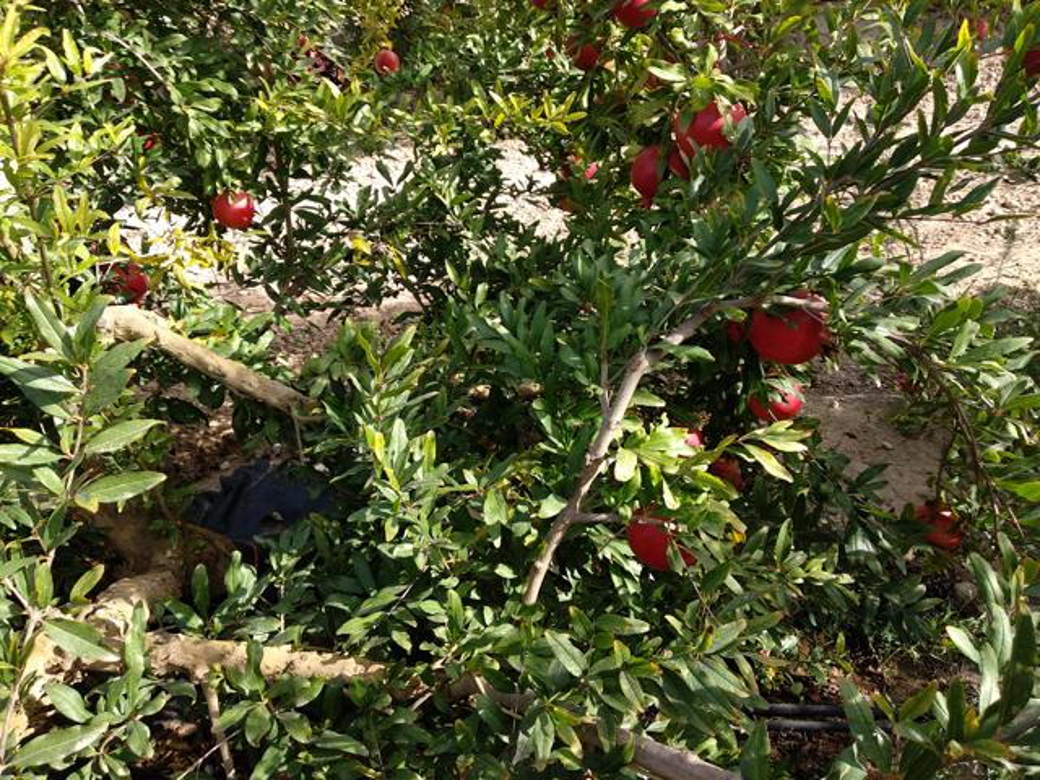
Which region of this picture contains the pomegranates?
[613,0,658,26]
[374,49,400,75]
[630,143,660,211]
[211,190,257,229]
[565,36,601,68]
[627,522,697,572]
[669,143,691,180]
[916,505,962,549]
[676,102,746,161]
[749,289,838,366]
[749,393,804,422]
[686,427,746,491]
[114,263,148,302]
